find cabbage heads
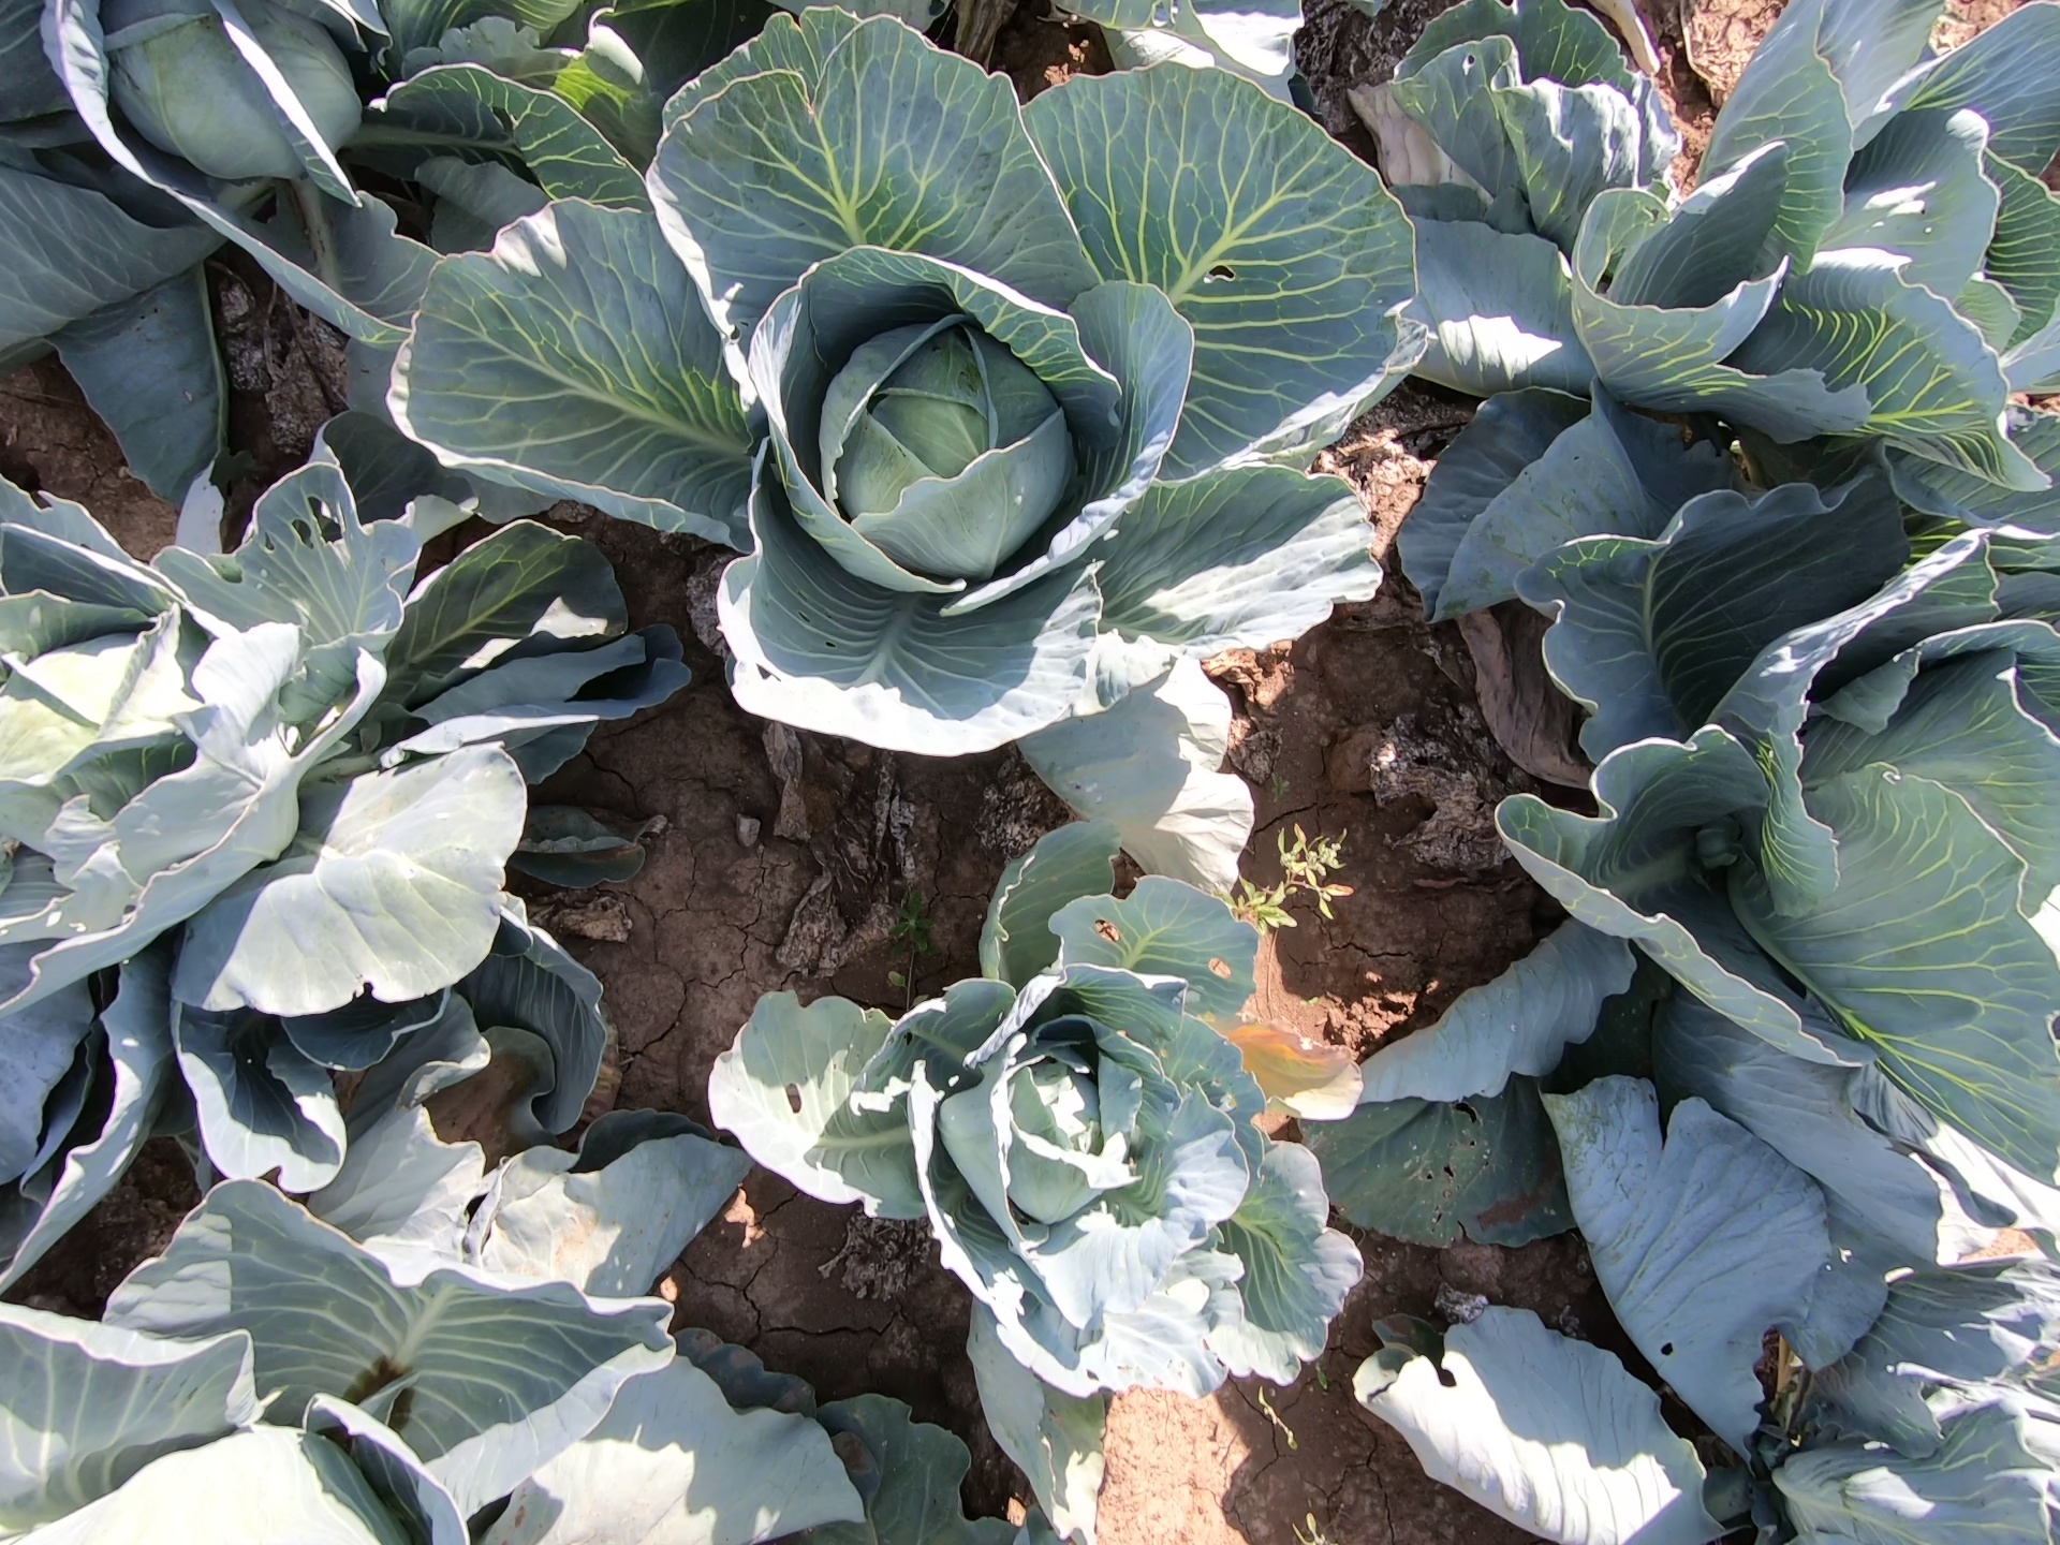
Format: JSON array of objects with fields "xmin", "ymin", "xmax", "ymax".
[
  {"xmin": 55, "ymin": 1439, "xmax": 385, "ymax": 1543},
  {"xmin": 822, "ymin": 327, "xmax": 1064, "ymax": 569},
  {"xmin": 5, "ymin": 631, "xmax": 237, "ymax": 855},
  {"xmin": 87, "ymin": 3, "xmax": 354, "ymax": 180},
  {"xmin": 1931, "ymin": 1380, "xmax": 2057, "ymax": 1522},
  {"xmin": 999, "ymin": 1056, "xmax": 1131, "ymax": 1210}
]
